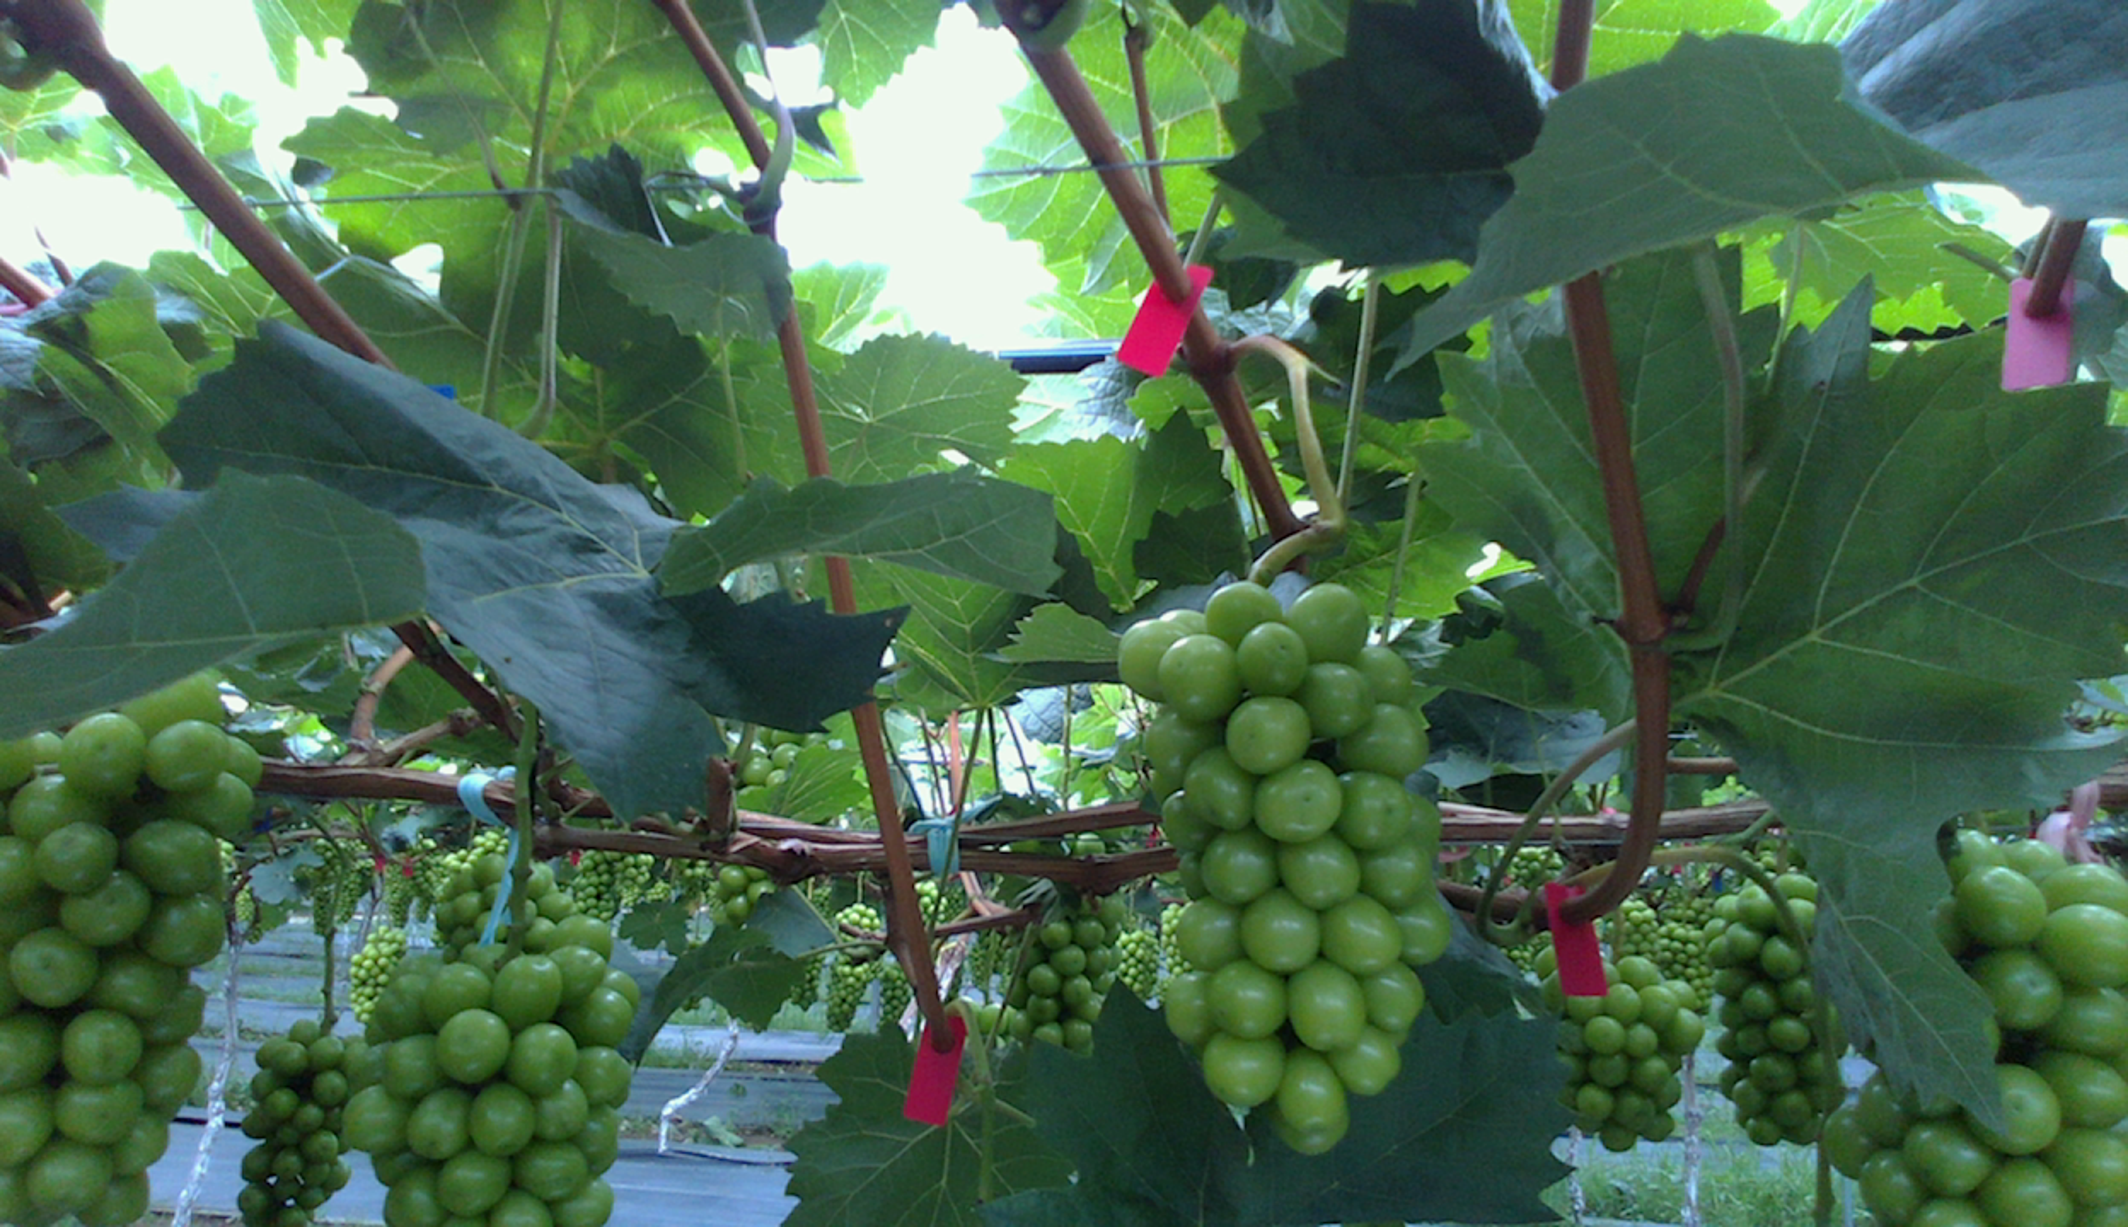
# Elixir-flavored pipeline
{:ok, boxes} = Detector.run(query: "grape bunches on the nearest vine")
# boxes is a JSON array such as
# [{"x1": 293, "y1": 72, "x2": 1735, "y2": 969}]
[
  {"x1": 1823, "y1": 833, "x2": 2123, "y2": 1224},
  {"x1": 1117, "y1": 581, "x2": 1454, "y2": 1154},
  {"x1": 2, "y1": 673, "x2": 264, "y2": 1225},
  {"x1": 338, "y1": 910, "x2": 645, "y2": 1225}
]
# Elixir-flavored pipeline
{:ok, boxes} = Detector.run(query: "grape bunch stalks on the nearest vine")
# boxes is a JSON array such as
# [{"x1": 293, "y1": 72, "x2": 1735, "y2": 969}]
[
  {"x1": 1235, "y1": 334, "x2": 1345, "y2": 590},
  {"x1": 500, "y1": 706, "x2": 539, "y2": 963}
]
